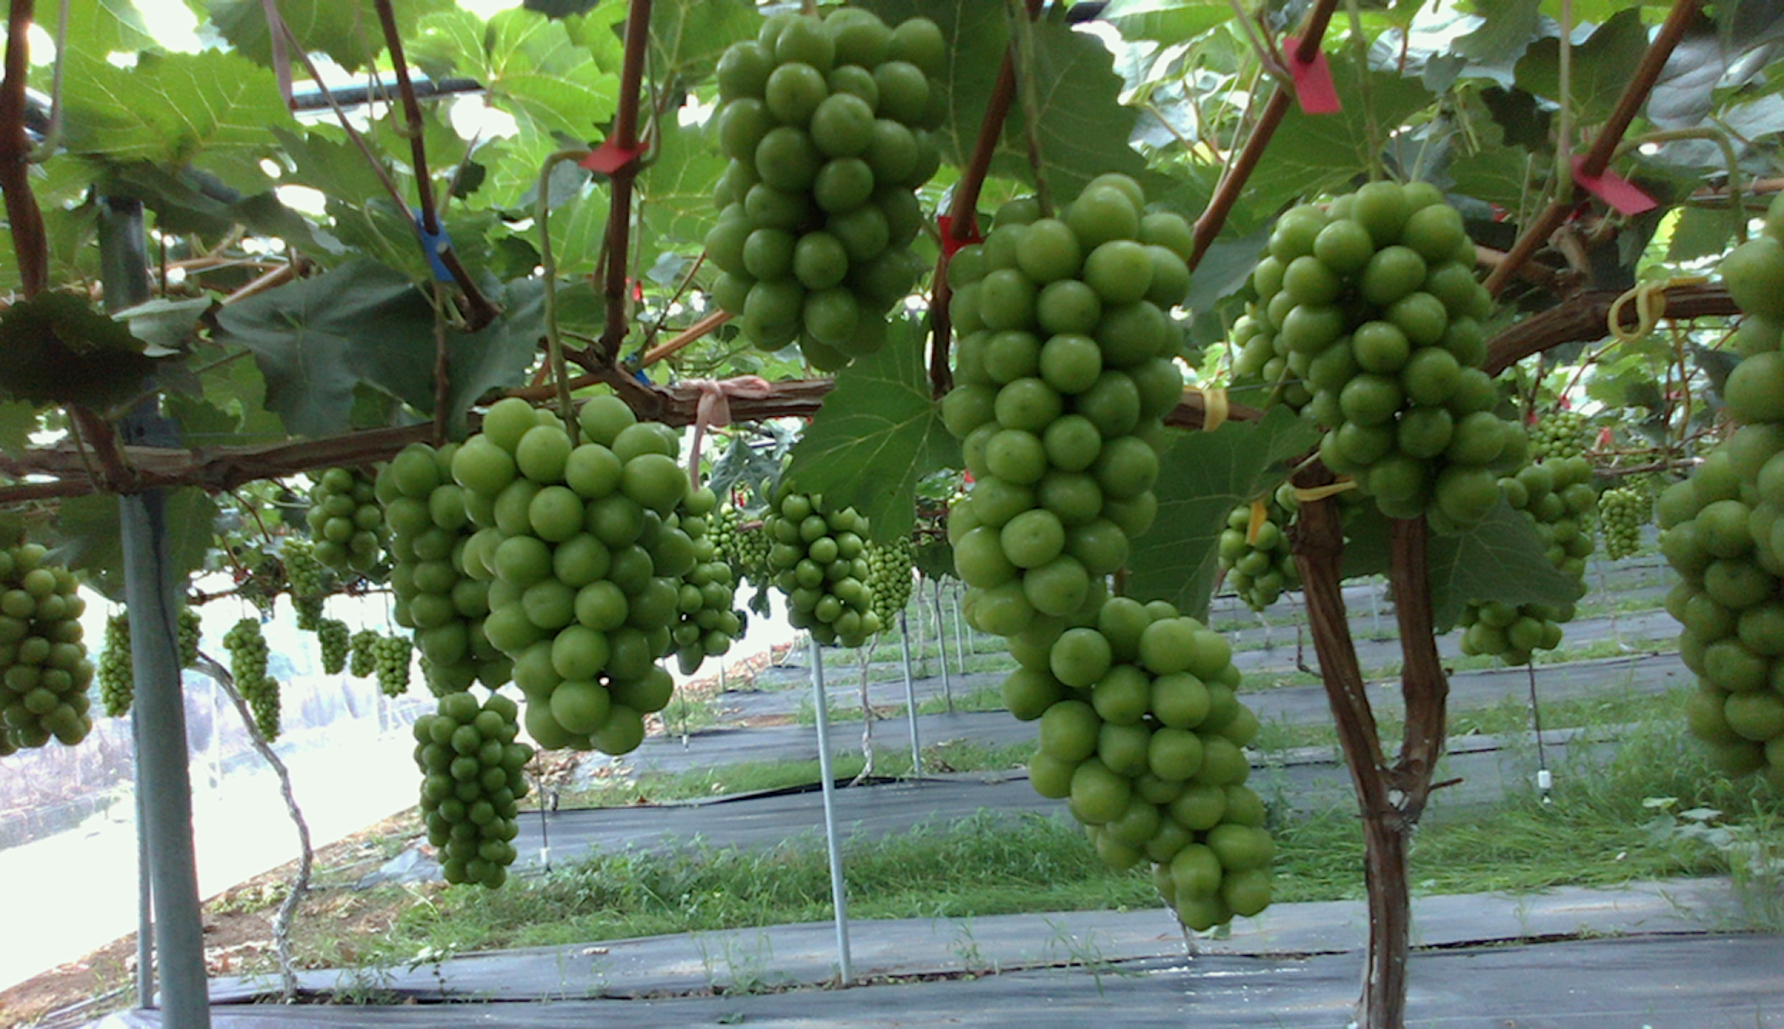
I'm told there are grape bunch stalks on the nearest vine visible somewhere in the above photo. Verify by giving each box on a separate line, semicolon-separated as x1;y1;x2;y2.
533;149;589;449
1345;1;1382;183
1607;126;1751;244
1012;0;1055;217
430;274;450;450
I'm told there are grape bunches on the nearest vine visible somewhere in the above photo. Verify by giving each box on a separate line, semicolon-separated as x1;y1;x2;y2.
1002;596;1275;933
941;171;1195;667
1254;180;1528;536
450;396;695;755
700;6;949;372
376;440;513;693
1721;189;1783;565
